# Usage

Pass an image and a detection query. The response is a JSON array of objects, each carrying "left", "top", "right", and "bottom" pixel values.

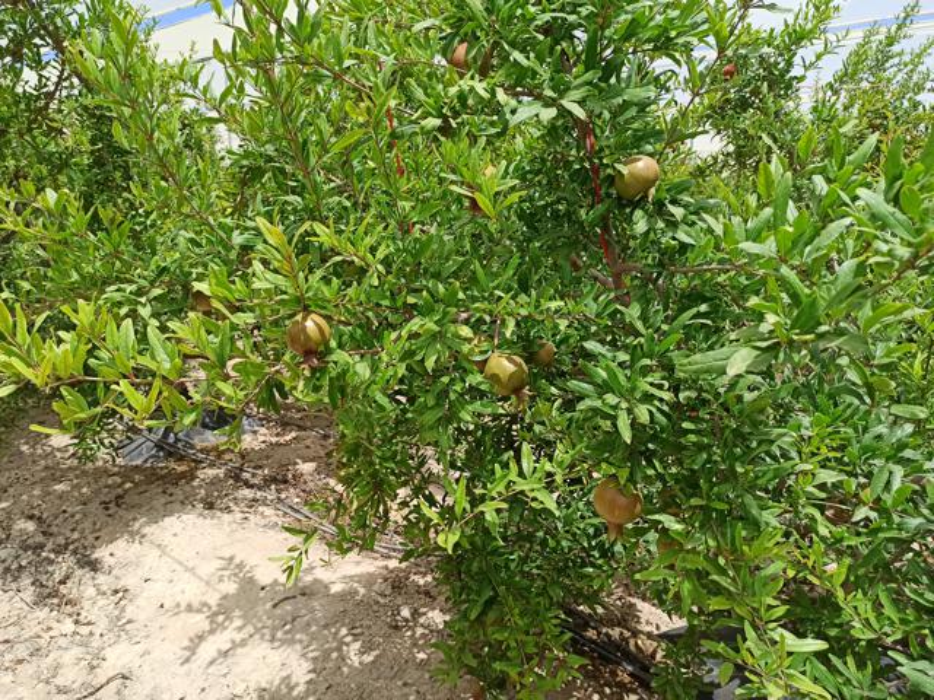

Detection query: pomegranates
[
  {"left": 536, "top": 341, "right": 557, "bottom": 365},
  {"left": 451, "top": 41, "right": 467, "bottom": 70},
  {"left": 594, "top": 478, "right": 644, "bottom": 545},
  {"left": 613, "top": 155, "right": 661, "bottom": 203},
  {"left": 286, "top": 312, "right": 331, "bottom": 369},
  {"left": 483, "top": 351, "right": 539, "bottom": 407},
  {"left": 196, "top": 293, "right": 213, "bottom": 316}
]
